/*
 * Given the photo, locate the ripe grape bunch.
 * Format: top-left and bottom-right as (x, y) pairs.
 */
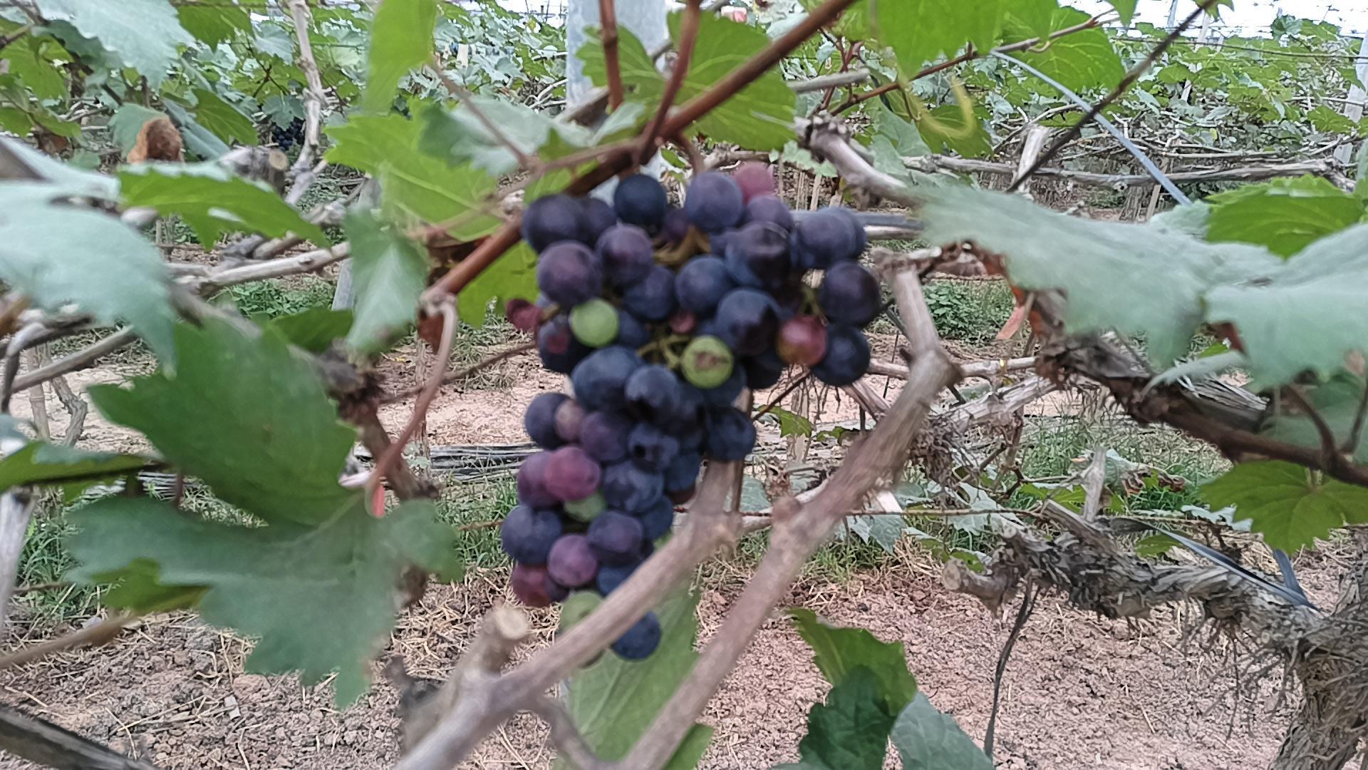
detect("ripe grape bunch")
(259, 95), (307, 158)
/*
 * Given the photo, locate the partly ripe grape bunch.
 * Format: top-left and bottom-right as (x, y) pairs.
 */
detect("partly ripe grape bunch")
(502, 170), (879, 602)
